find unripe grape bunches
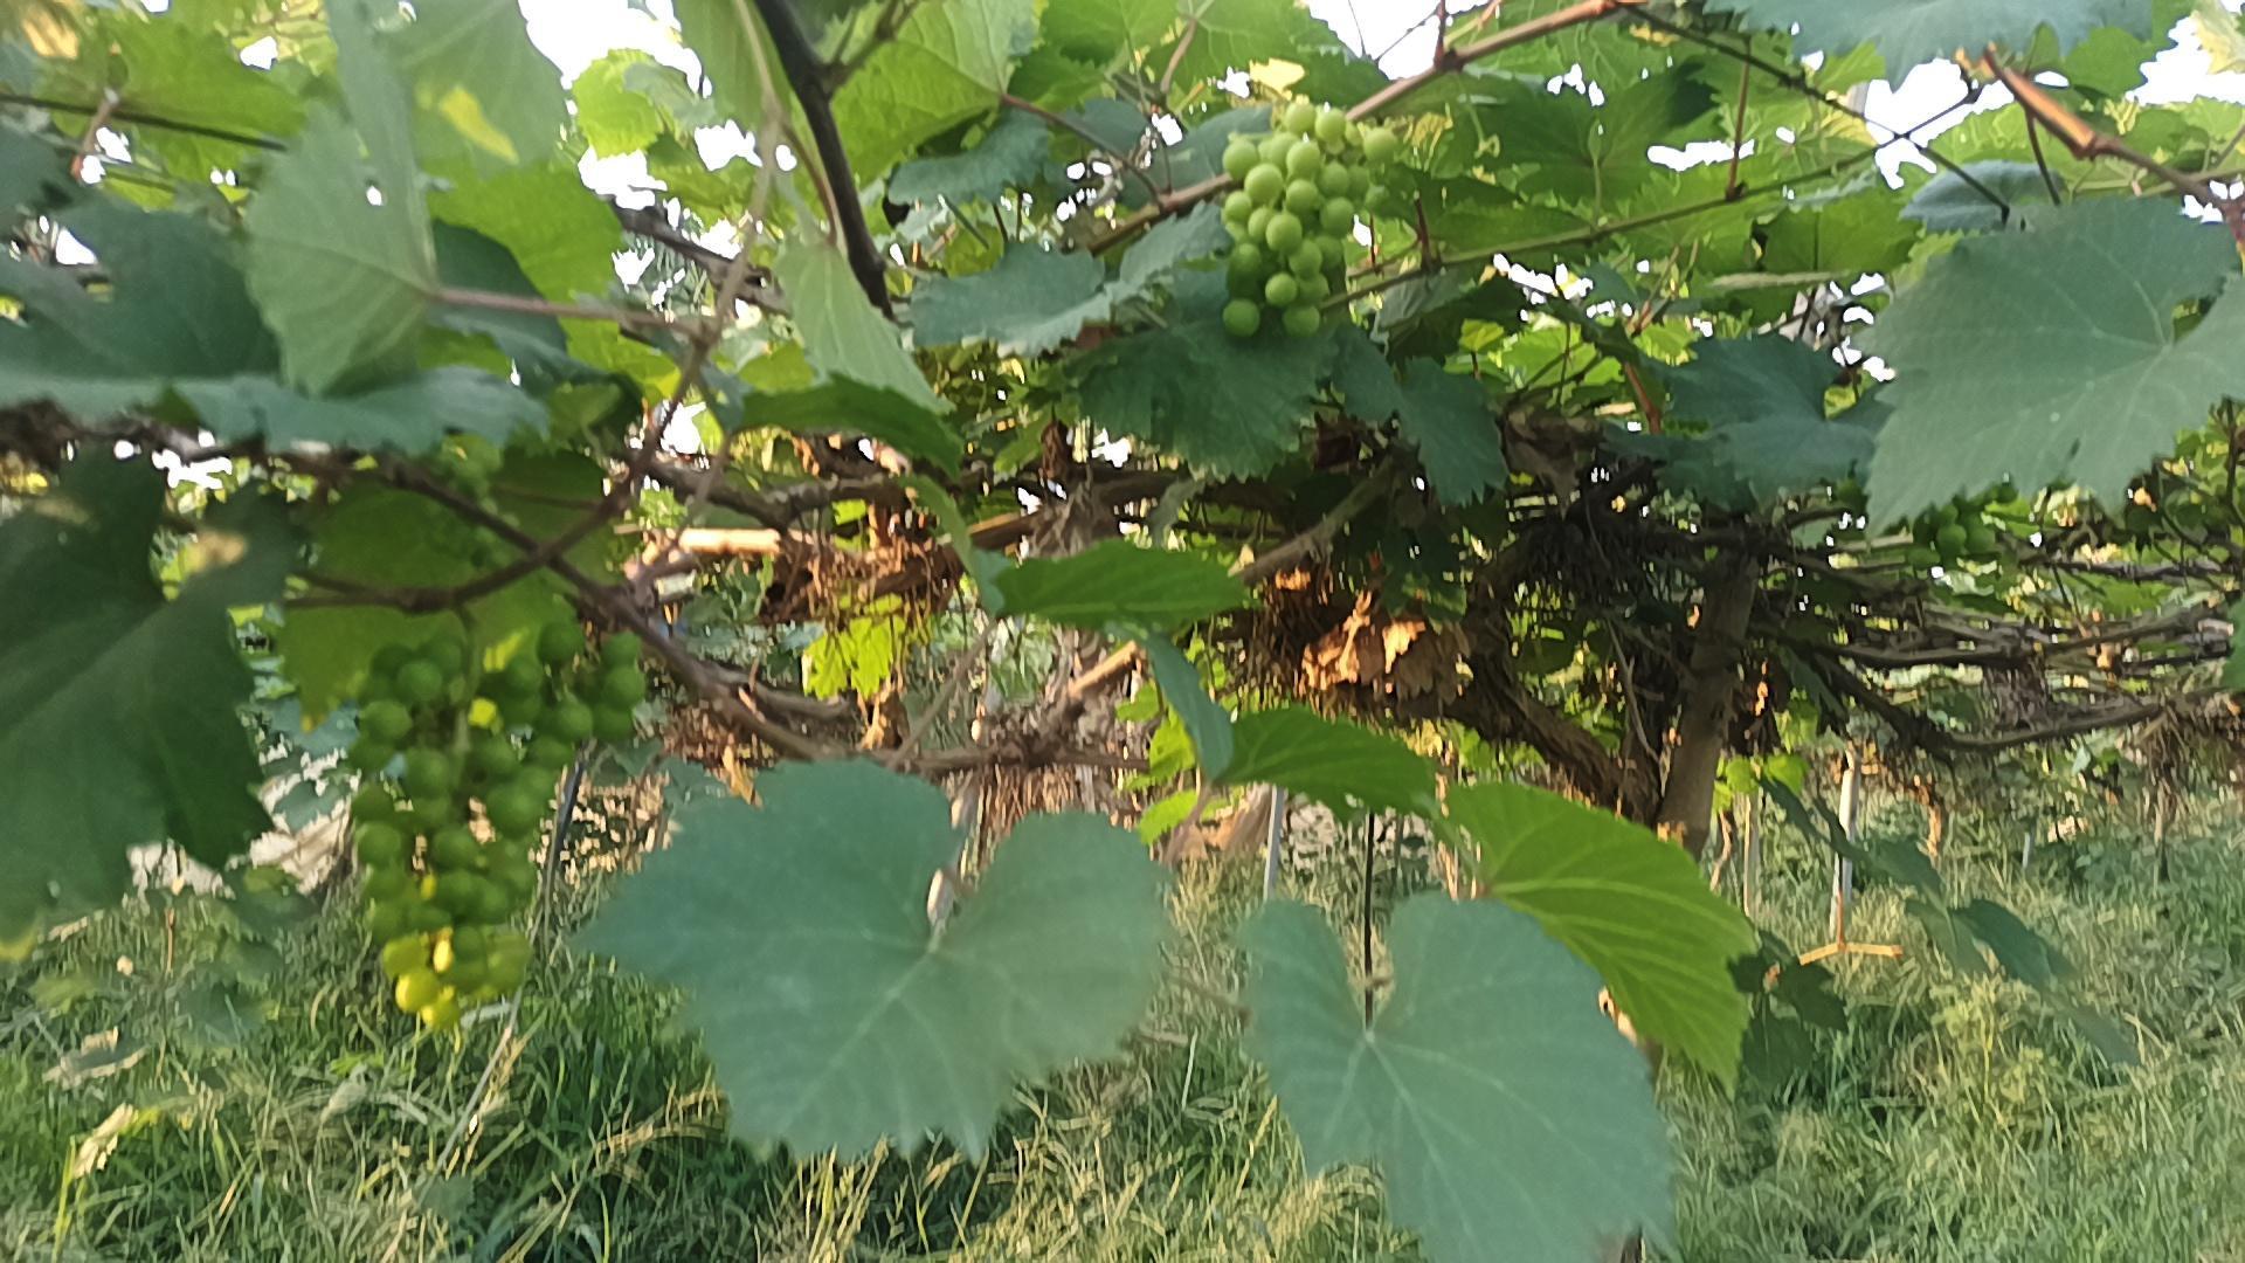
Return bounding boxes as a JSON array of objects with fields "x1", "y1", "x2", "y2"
[
  {"x1": 1221, "y1": 96, "x2": 1397, "y2": 338},
  {"x1": 350, "y1": 608, "x2": 644, "y2": 1027},
  {"x1": 1911, "y1": 482, "x2": 2038, "y2": 566}
]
